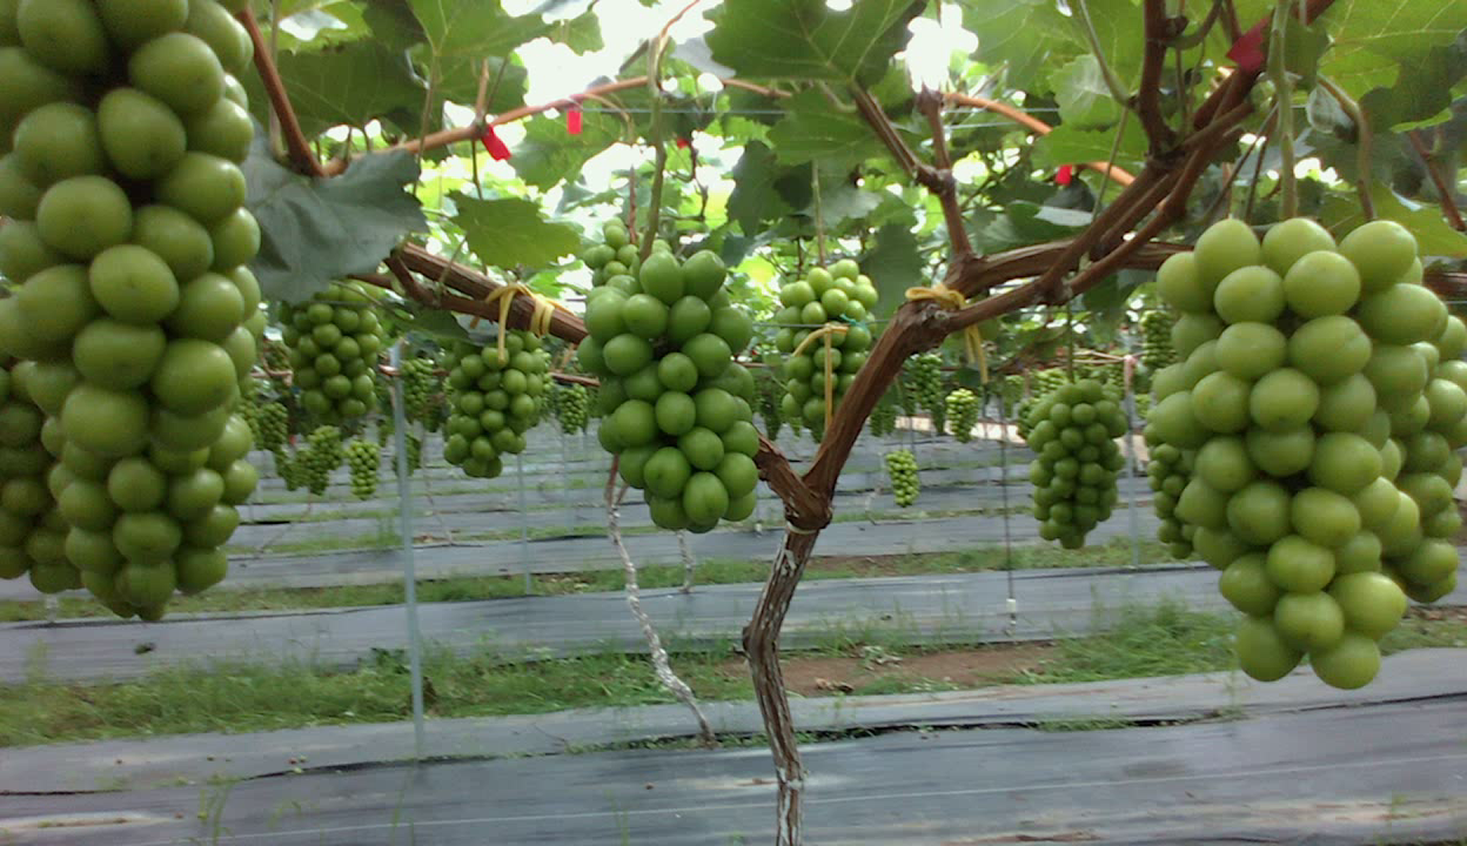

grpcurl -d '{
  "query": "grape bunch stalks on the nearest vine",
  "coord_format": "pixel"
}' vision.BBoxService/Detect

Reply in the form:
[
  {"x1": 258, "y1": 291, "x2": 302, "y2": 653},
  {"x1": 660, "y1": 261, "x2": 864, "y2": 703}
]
[
  {"x1": 1317, "y1": 73, "x2": 1379, "y2": 222},
  {"x1": 1268, "y1": 0, "x2": 1297, "y2": 222},
  {"x1": 641, "y1": 32, "x2": 669, "y2": 264}
]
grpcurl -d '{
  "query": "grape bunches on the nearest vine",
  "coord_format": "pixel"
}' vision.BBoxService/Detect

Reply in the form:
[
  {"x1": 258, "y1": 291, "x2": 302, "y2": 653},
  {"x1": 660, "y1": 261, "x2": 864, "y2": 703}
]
[
  {"x1": 577, "y1": 248, "x2": 759, "y2": 533},
  {"x1": 1338, "y1": 221, "x2": 1465, "y2": 603},
  {"x1": 1152, "y1": 216, "x2": 1419, "y2": 690},
  {"x1": 0, "y1": 1, "x2": 263, "y2": 618}
]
